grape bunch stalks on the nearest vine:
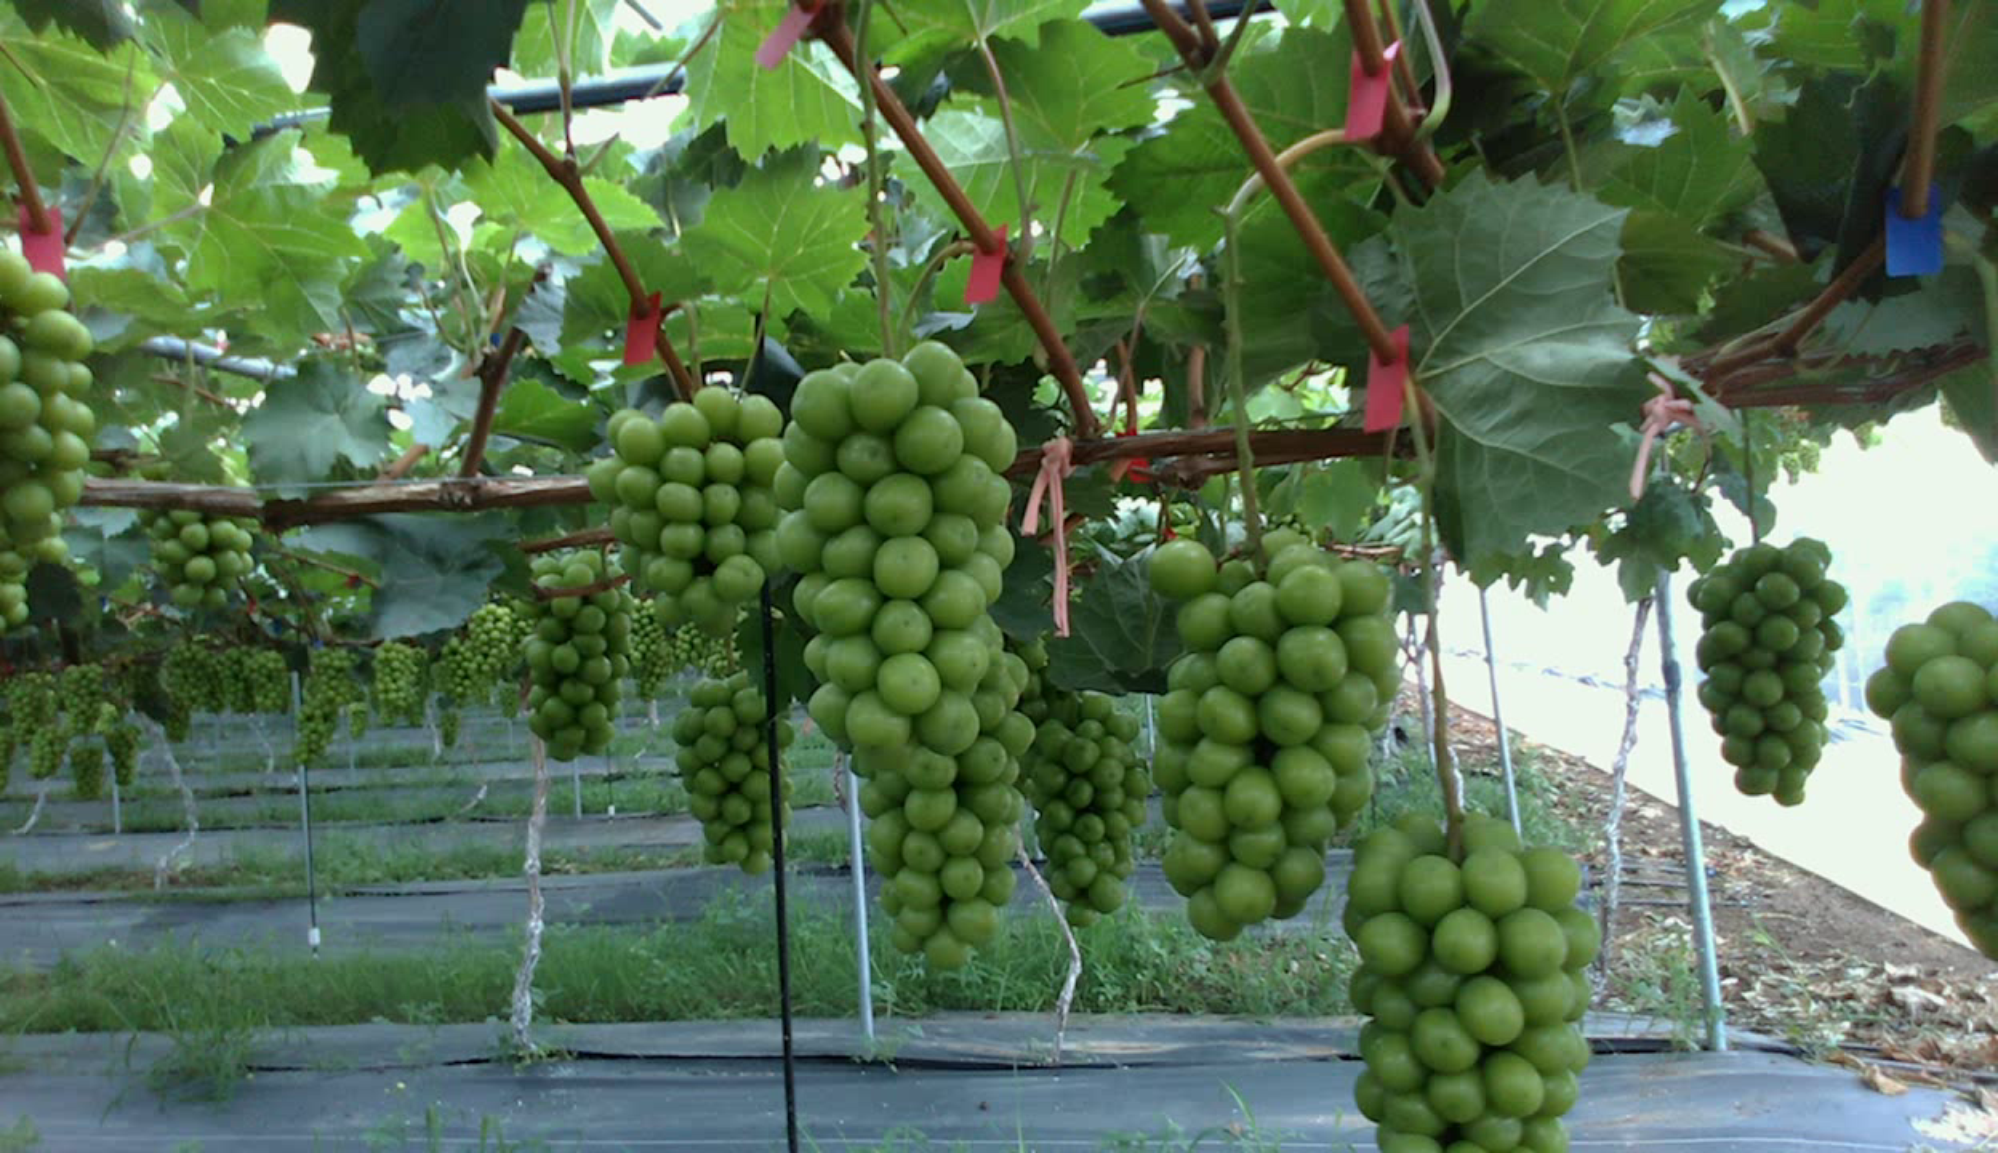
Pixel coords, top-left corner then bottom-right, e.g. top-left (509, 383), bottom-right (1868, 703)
top-left (1214, 127), bottom-right (1343, 576)
top-left (855, 0), bottom-right (892, 357)
top-left (1402, 380), bottom-right (1462, 863)
top-left (660, 298), bottom-right (701, 392)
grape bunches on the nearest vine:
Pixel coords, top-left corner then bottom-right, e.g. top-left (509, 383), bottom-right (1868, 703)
top-left (0, 248), bottom-right (98, 517)
top-left (1343, 810), bottom-right (1598, 1151)
top-left (586, 386), bottom-right (786, 639)
top-left (773, 339), bottom-right (1018, 772)
top-left (1151, 525), bottom-right (1401, 938)
top-left (1867, 601), bottom-right (1996, 964)
top-left (852, 615), bottom-right (1036, 970)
